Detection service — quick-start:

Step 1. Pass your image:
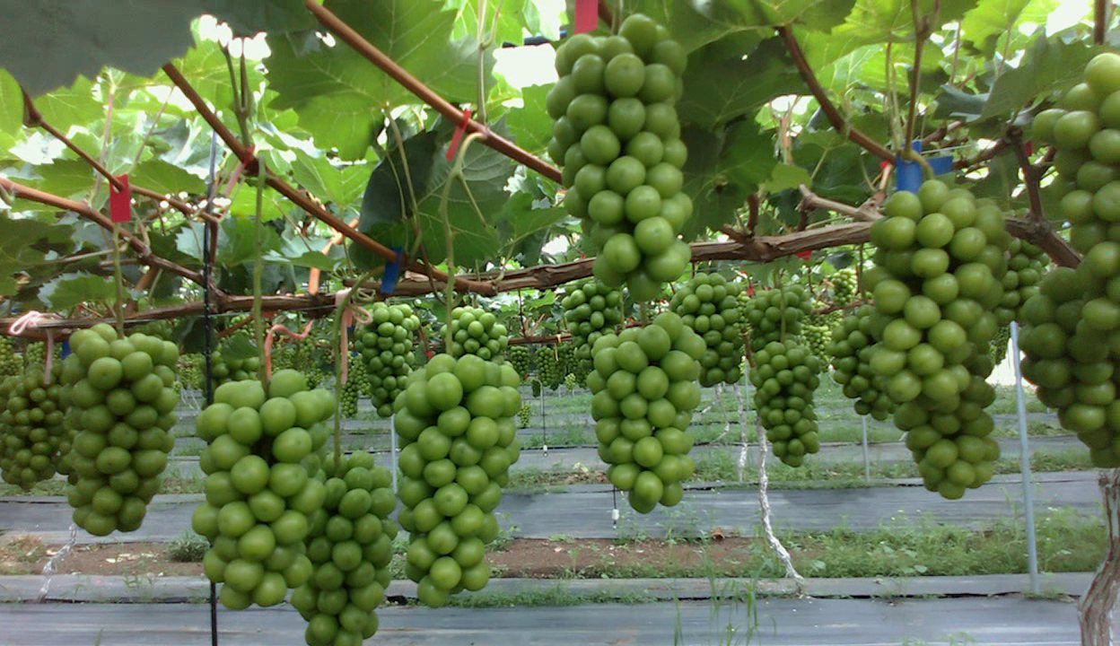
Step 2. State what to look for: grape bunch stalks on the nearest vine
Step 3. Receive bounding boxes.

[113,223,124,340]
[252,154,271,402]
[440,132,484,356]
[332,265,385,479]
[911,149,934,182]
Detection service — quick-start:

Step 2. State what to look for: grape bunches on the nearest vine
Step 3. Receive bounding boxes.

[392,354,521,608]
[291,451,397,636]
[1031,52,1119,330]
[586,311,707,514]
[890,354,1000,501]
[859,179,1013,403]
[190,368,336,610]
[543,13,693,304]
[57,323,179,537]
[1018,266,1119,469]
